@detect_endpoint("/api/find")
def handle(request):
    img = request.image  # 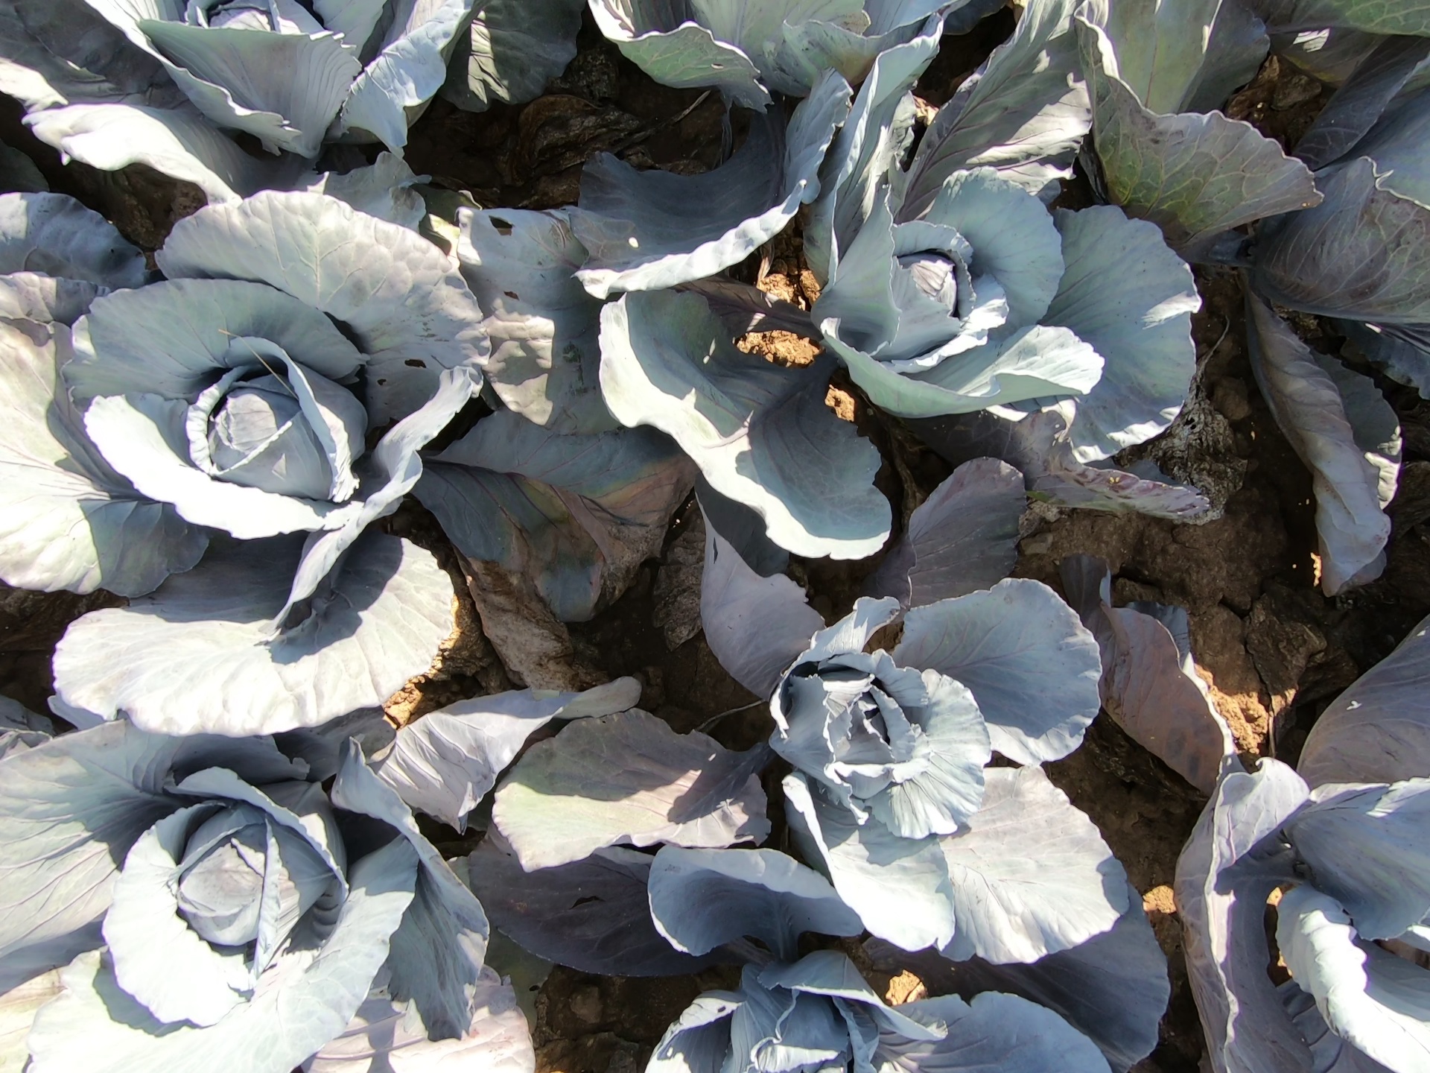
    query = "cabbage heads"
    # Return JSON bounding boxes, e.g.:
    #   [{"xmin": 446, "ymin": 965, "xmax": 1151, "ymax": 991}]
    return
[
  {"xmin": 206, "ymin": 382, "xmax": 341, "ymax": 486},
  {"xmin": 1331, "ymin": 793, "xmax": 1427, "ymax": 933},
  {"xmin": 179, "ymin": 806, "xmax": 317, "ymax": 946},
  {"xmin": 873, "ymin": 251, "xmax": 958, "ymax": 348},
  {"xmin": 743, "ymin": 984, "xmax": 857, "ymax": 1068},
  {"xmin": 816, "ymin": 686, "xmax": 895, "ymax": 762},
  {"xmin": 201, "ymin": 5, "xmax": 320, "ymax": 95}
]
